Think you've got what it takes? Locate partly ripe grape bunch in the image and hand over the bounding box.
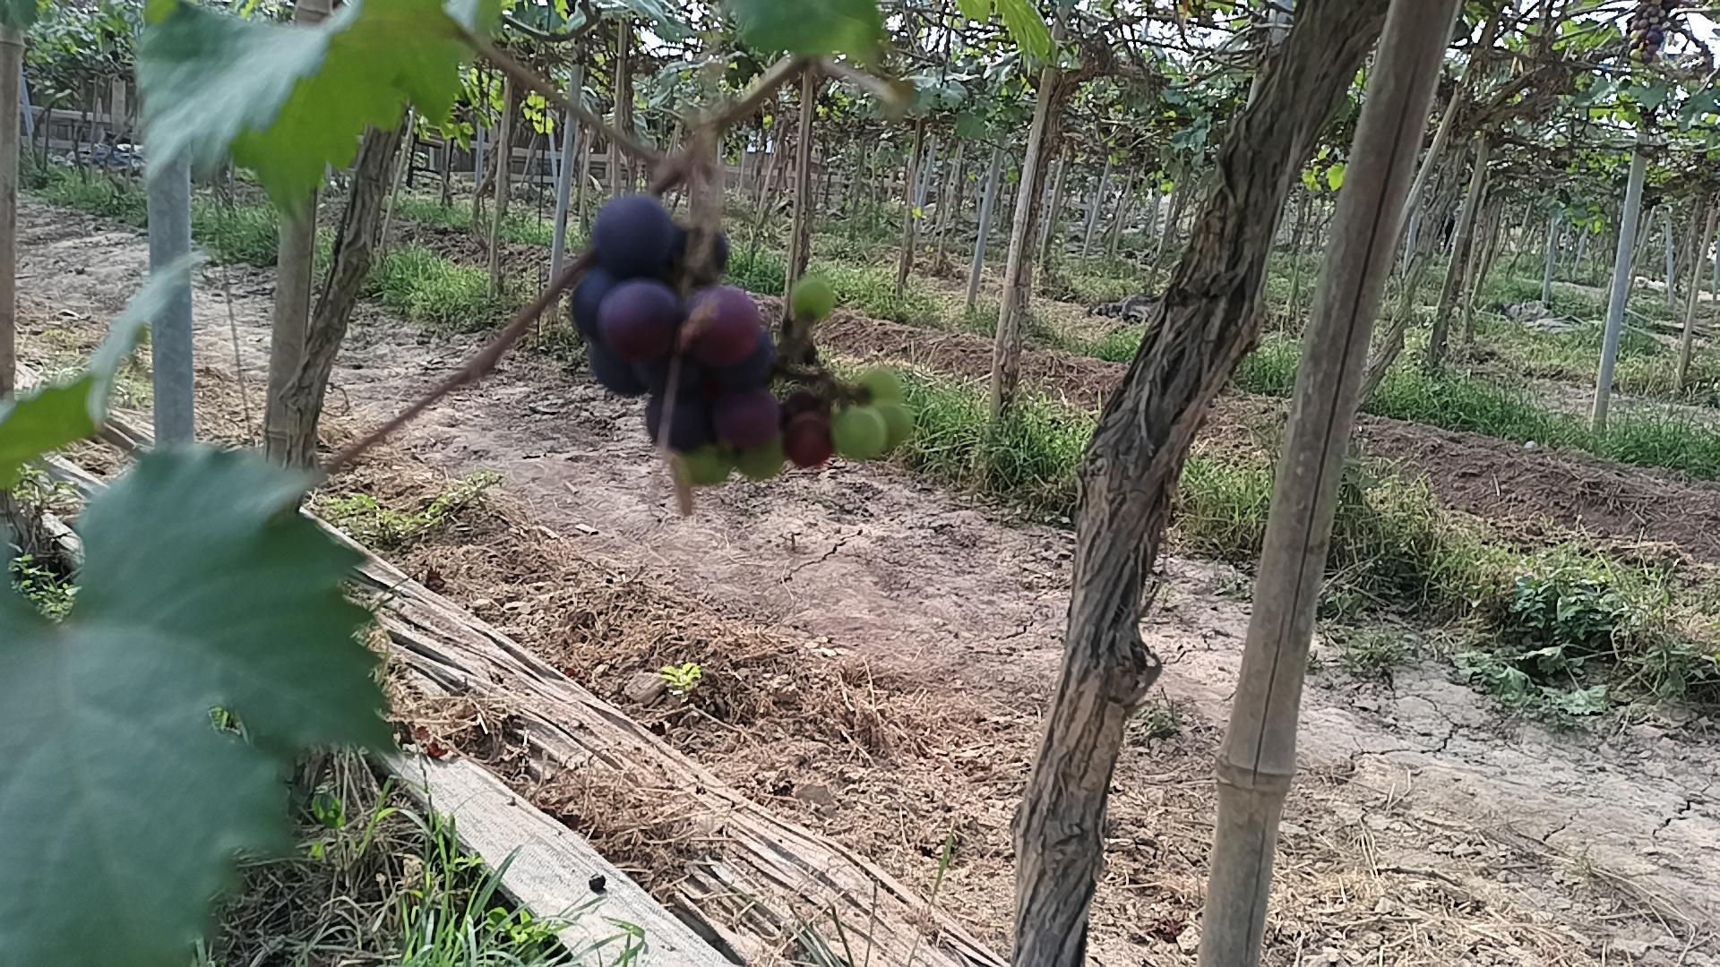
[572,193,910,487]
